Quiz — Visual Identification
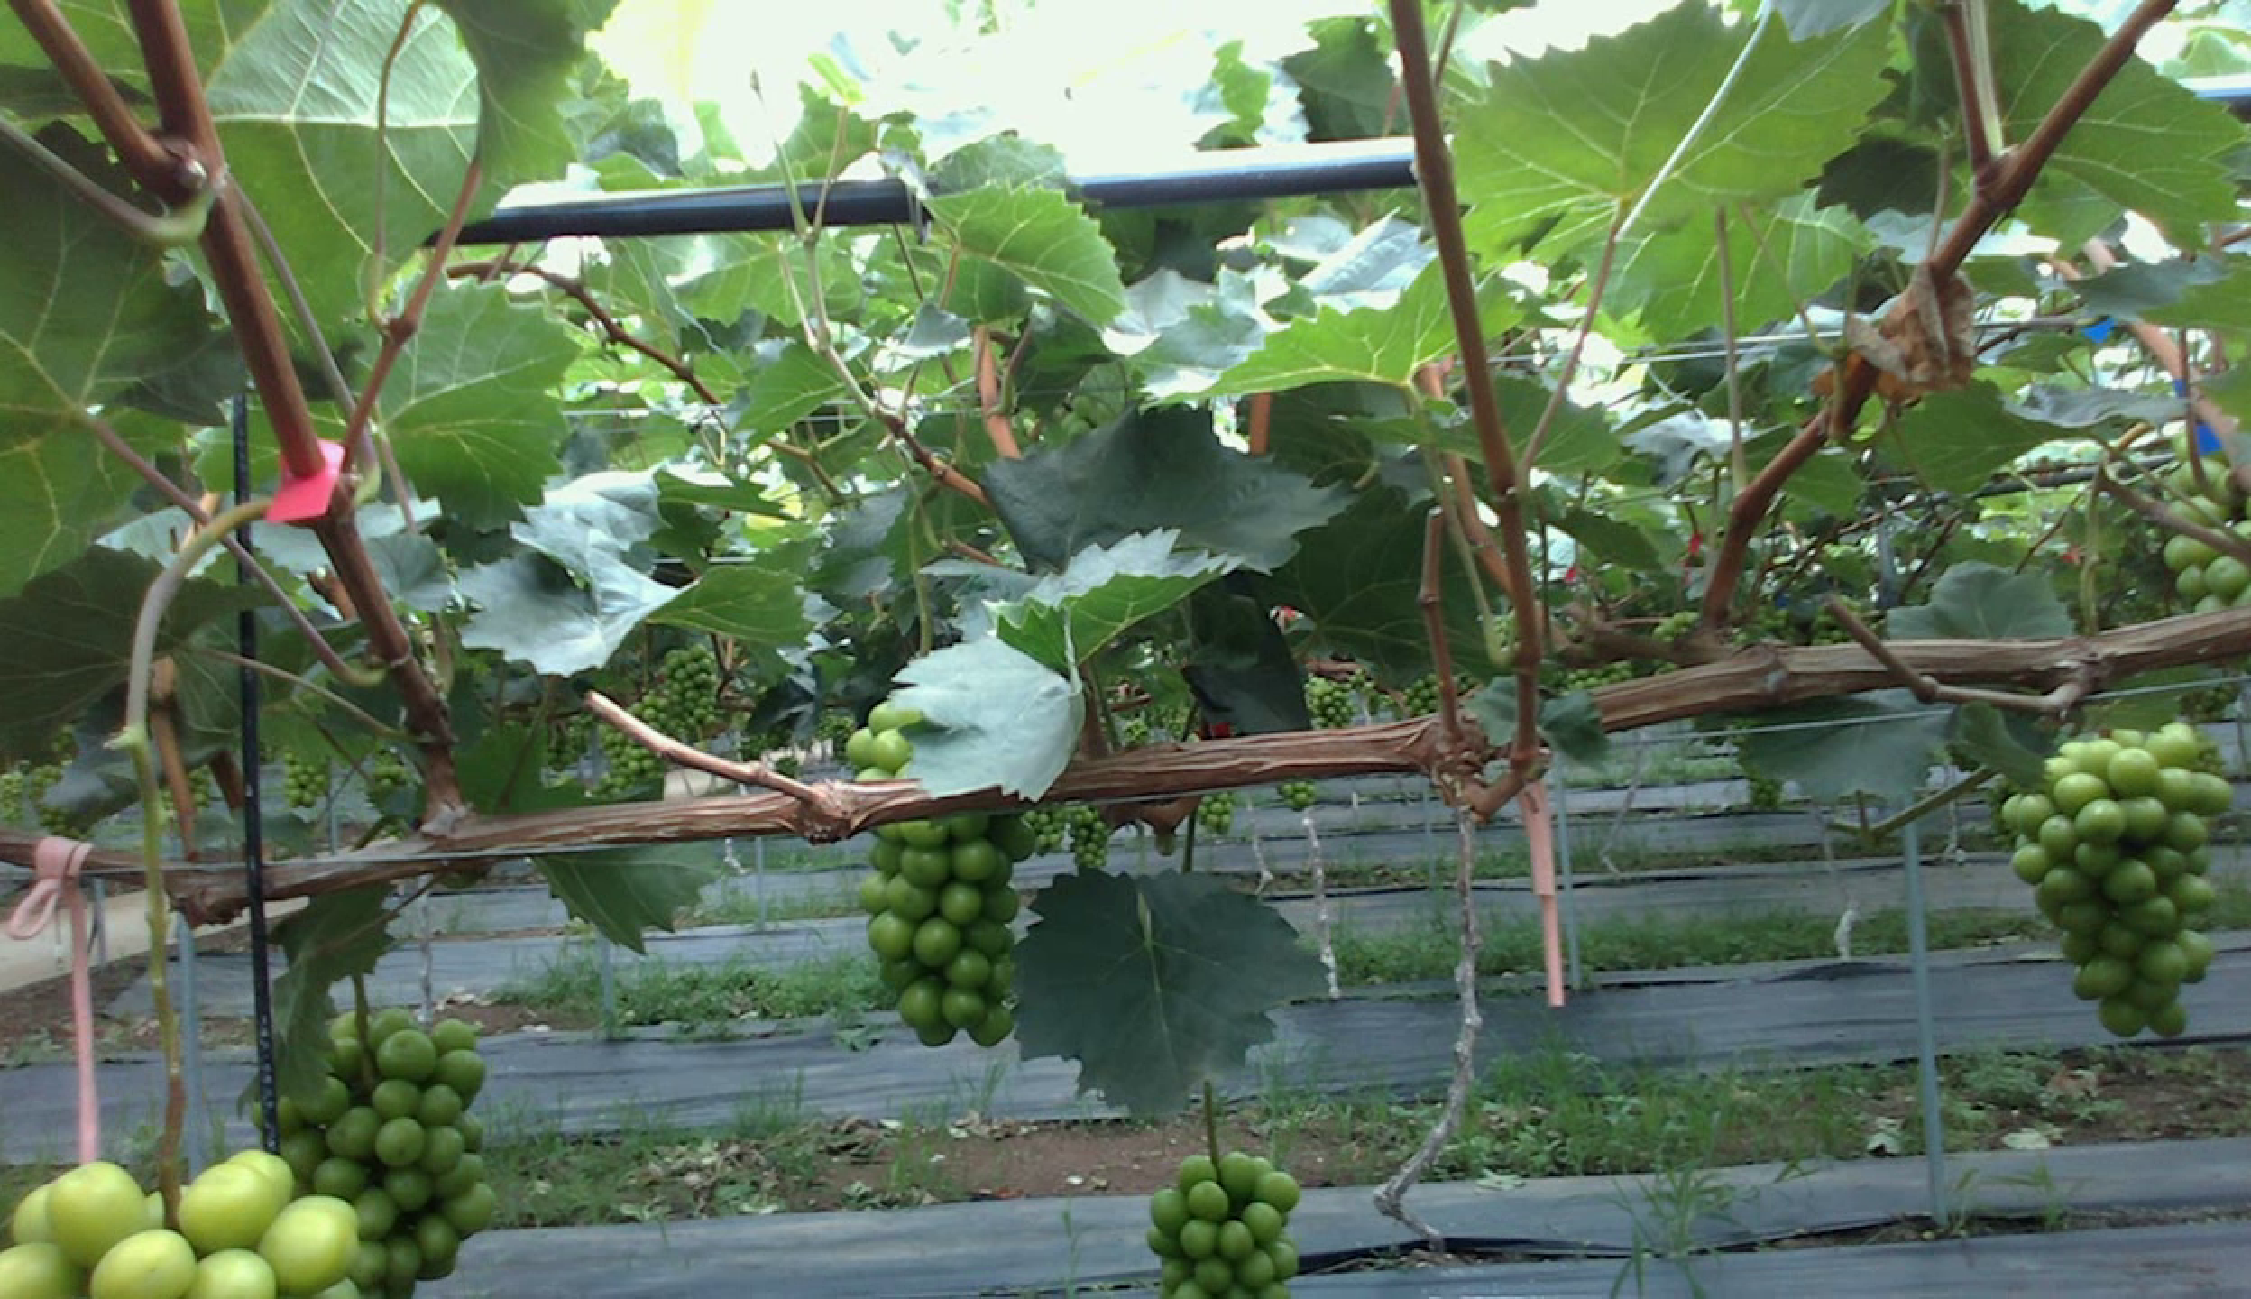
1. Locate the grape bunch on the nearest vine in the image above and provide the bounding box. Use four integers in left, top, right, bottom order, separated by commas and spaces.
2, 1147, 357, 1297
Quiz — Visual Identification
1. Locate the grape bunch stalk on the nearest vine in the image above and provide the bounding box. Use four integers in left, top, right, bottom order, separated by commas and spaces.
119, 498, 272, 1229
